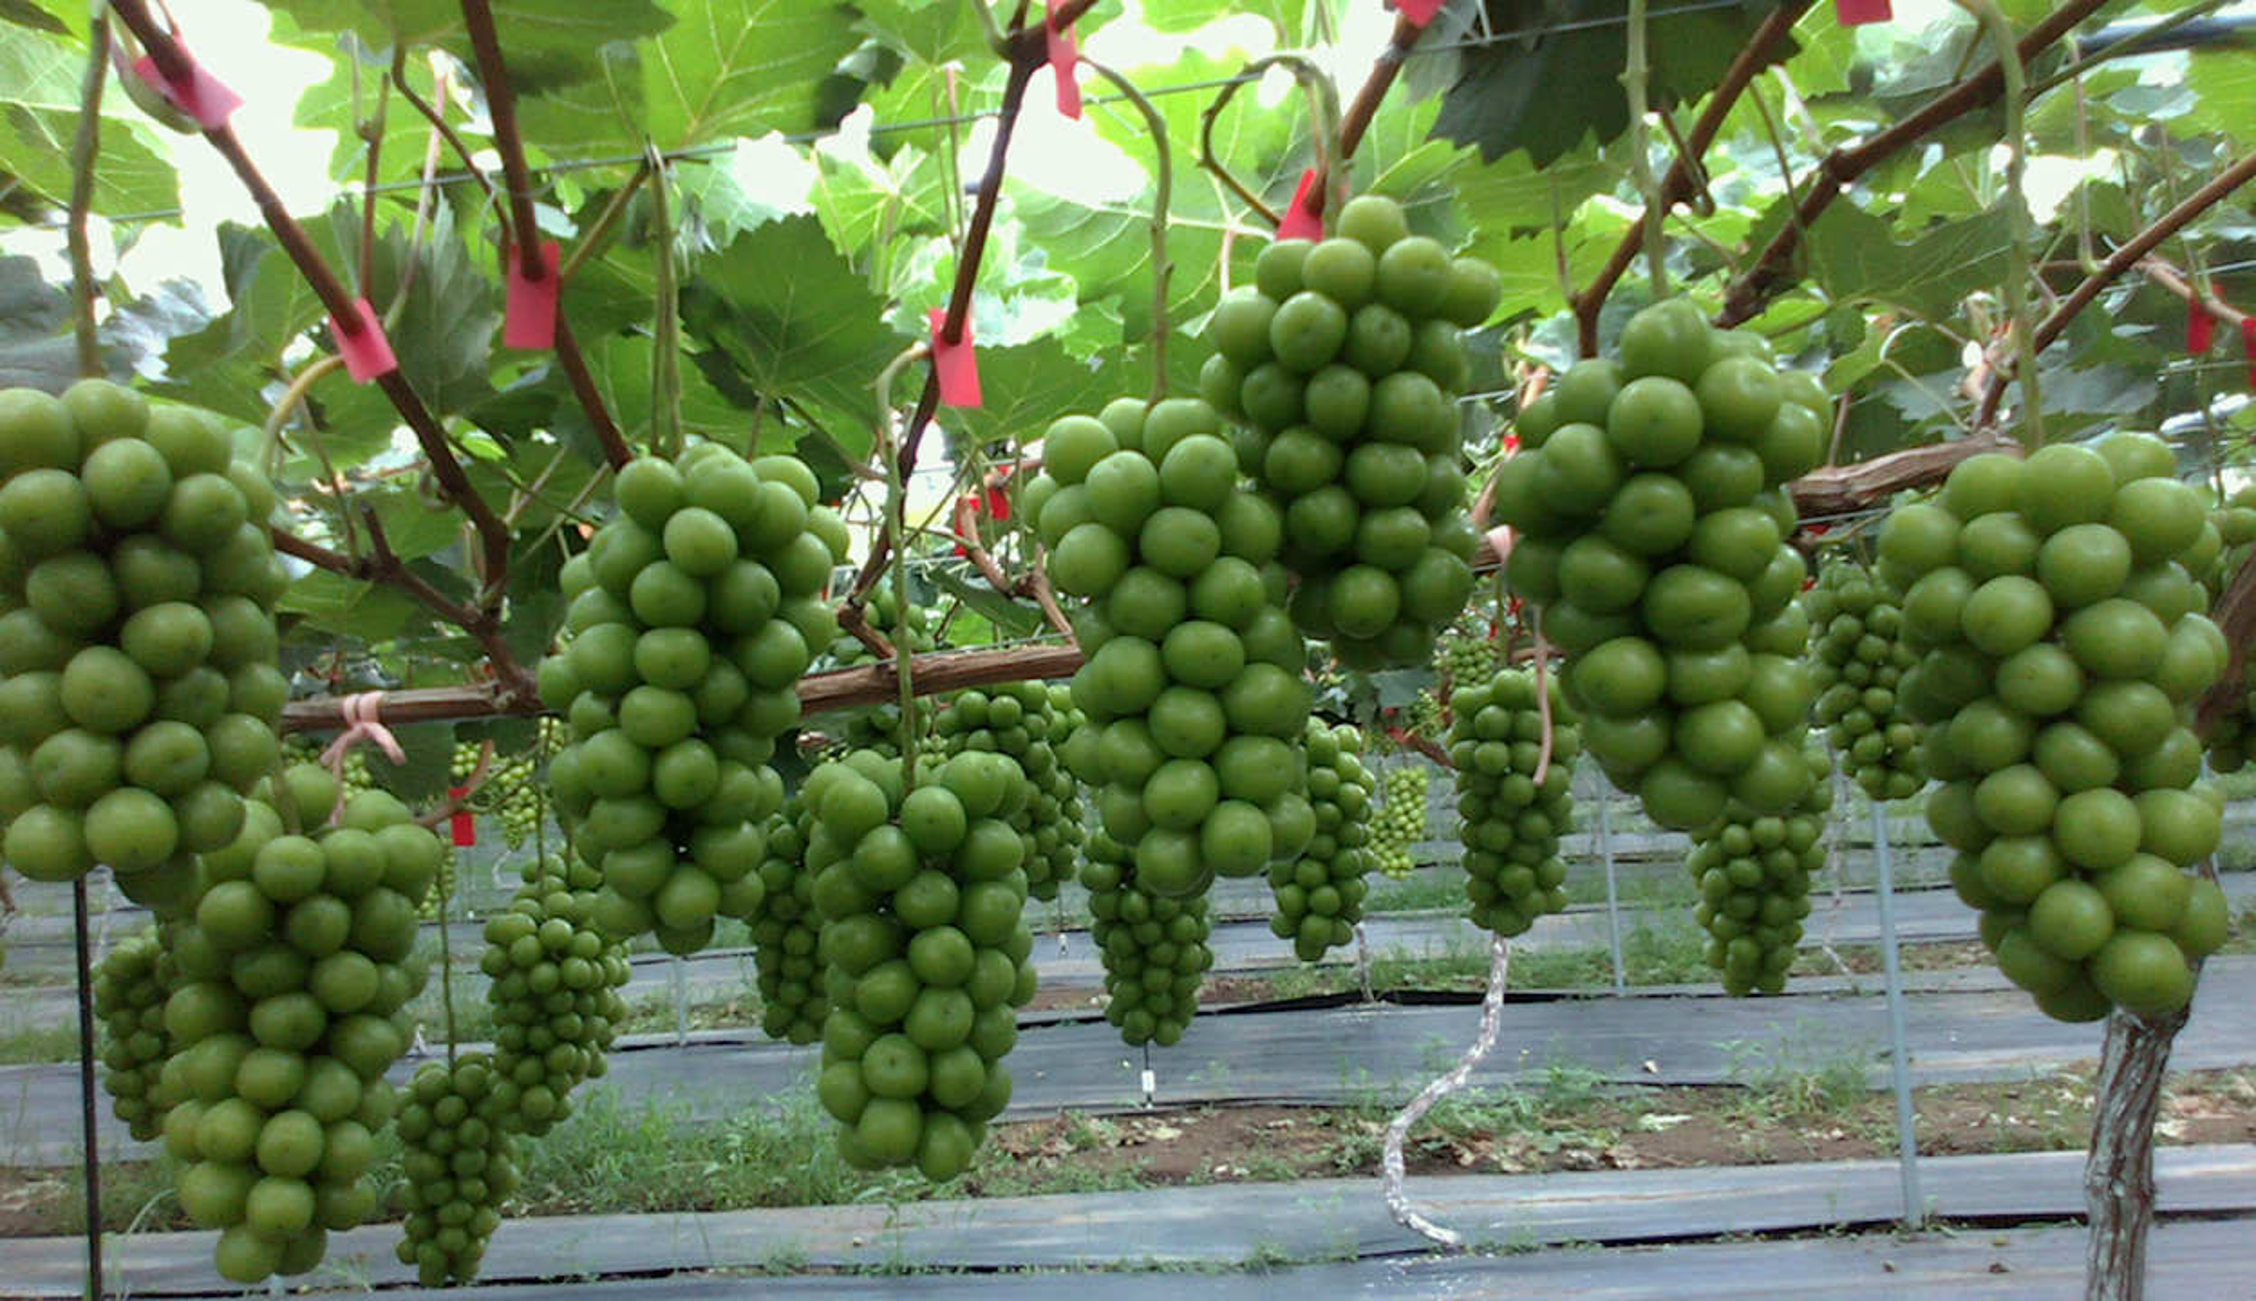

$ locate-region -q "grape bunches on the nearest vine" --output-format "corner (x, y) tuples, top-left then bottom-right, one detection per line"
(1876, 430), (2229, 1023)
(1021, 396), (1318, 893)
(537, 443), (850, 954)
(801, 748), (1039, 1180)
(1495, 300), (1835, 833)
(1200, 195), (1502, 670)
(136, 766), (443, 1283)
(0, 376), (287, 885)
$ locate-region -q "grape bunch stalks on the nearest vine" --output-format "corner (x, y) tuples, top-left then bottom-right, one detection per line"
(1616, 2), (1667, 304)
(647, 143), (683, 459)
(873, 340), (929, 793)
(1081, 51), (1175, 407)
(67, 0), (110, 383)
(1965, 0), (2048, 457)
(1197, 52), (1343, 235)
(269, 748), (302, 831)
